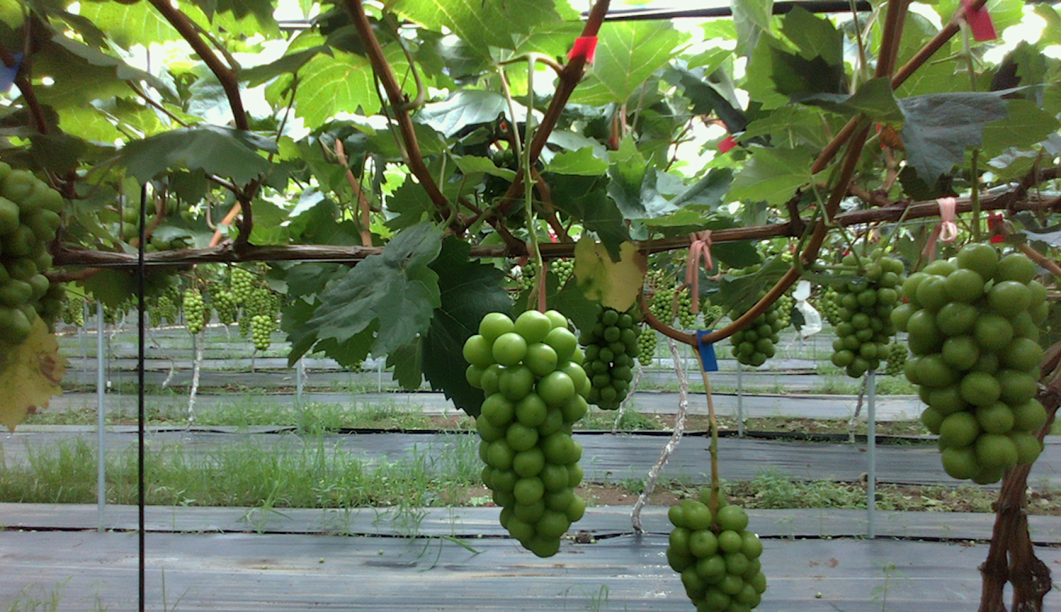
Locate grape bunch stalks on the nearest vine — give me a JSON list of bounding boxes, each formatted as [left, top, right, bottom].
[[524, 54, 565, 311], [692, 348, 719, 516]]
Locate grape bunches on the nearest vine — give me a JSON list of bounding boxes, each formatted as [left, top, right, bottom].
[[0, 161, 65, 349], [890, 242, 1050, 486], [462, 311, 590, 557], [665, 489, 767, 611]]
